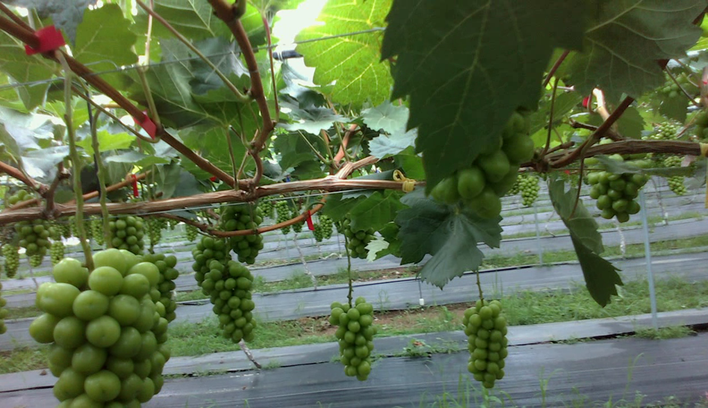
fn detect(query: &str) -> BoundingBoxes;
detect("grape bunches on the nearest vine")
[28,249,168,407]
[429,112,533,217]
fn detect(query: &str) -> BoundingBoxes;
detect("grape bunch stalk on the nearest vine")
[58,56,92,270]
